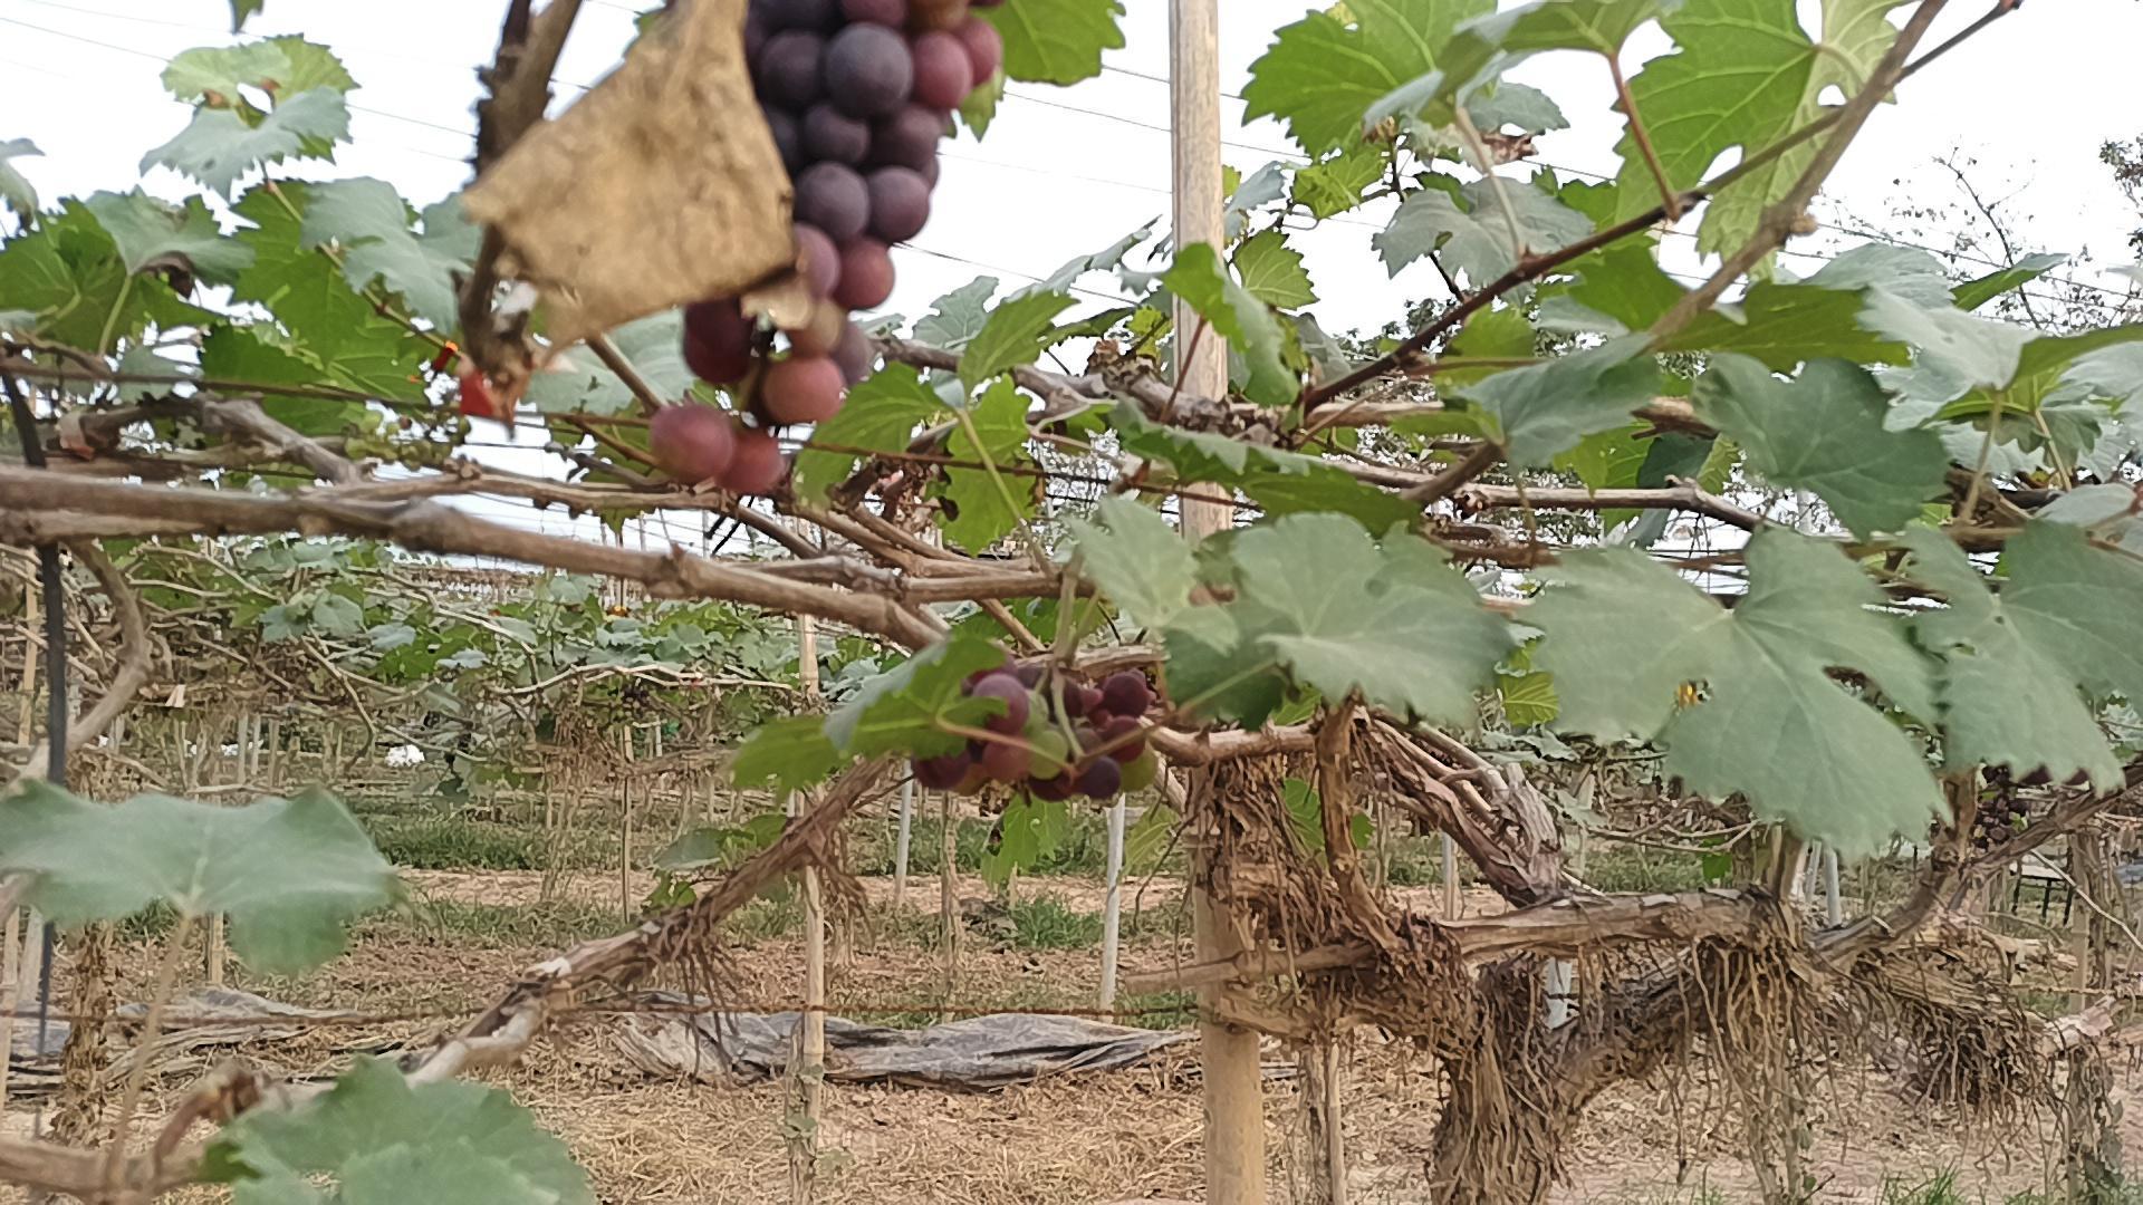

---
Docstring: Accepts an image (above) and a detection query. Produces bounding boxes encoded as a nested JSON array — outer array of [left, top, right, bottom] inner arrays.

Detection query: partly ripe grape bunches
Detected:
[[911, 656, 1161, 803], [645, 0, 1003, 497]]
